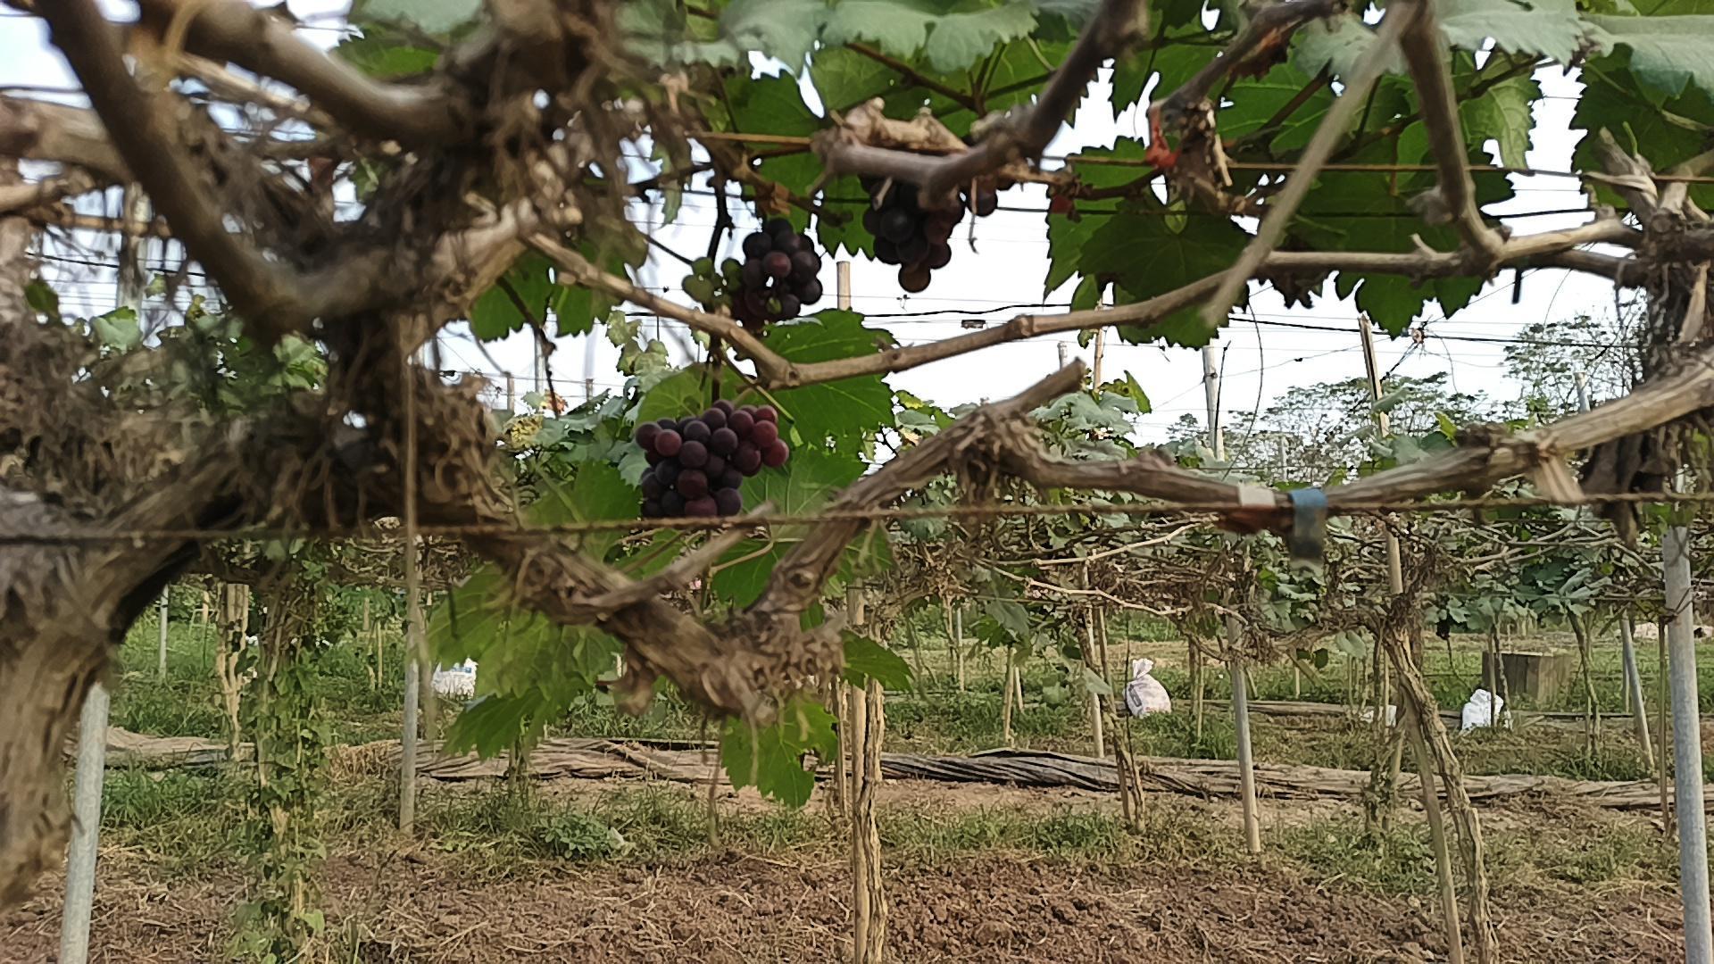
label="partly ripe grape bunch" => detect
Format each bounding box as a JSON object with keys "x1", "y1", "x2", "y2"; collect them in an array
[{"x1": 684, "y1": 218, "x2": 822, "y2": 331}]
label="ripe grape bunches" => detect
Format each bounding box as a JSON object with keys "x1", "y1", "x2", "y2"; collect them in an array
[
  {"x1": 861, "y1": 178, "x2": 996, "y2": 292},
  {"x1": 633, "y1": 400, "x2": 789, "y2": 517}
]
